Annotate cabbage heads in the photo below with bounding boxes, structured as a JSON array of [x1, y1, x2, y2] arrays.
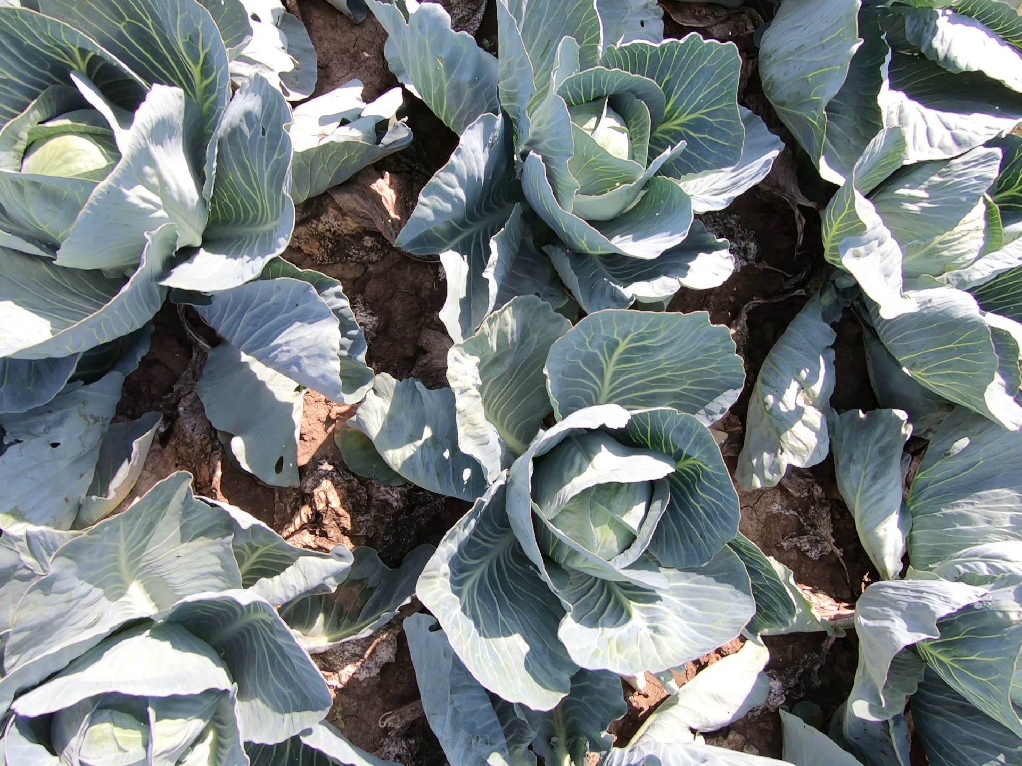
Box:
[[883, 181, 988, 281], [20, 104, 184, 254], [548, 440, 655, 563], [555, 99, 637, 204], [53, 625, 221, 765]]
